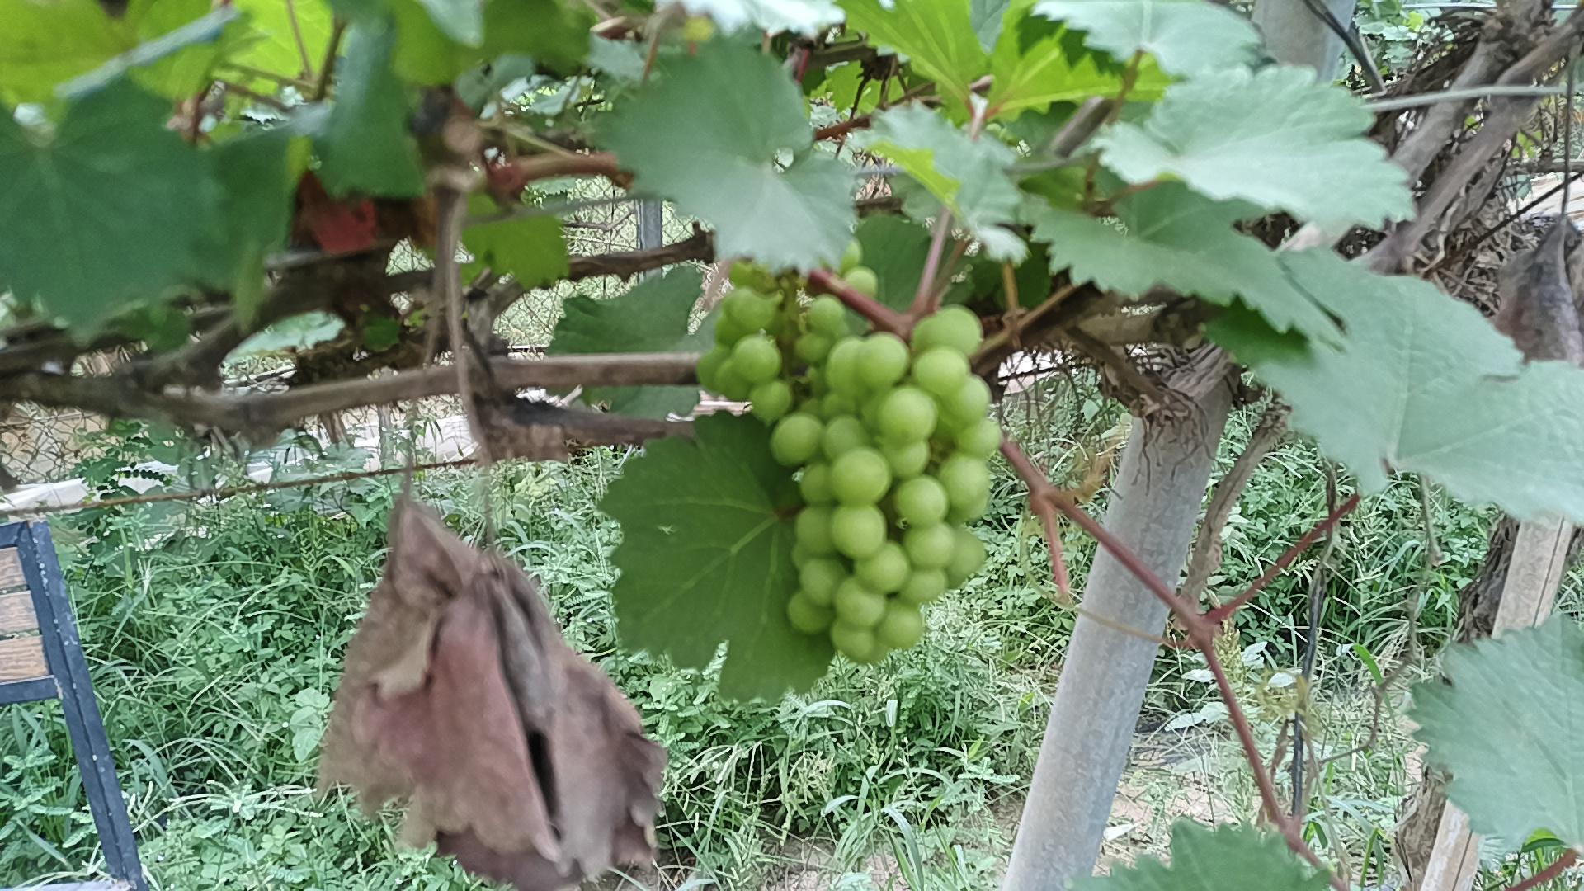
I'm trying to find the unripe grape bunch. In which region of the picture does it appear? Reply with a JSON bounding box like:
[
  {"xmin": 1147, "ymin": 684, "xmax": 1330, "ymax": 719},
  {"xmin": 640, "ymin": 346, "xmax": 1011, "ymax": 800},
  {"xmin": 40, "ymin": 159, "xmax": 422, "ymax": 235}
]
[{"xmin": 701, "ymin": 236, "xmax": 999, "ymax": 662}]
